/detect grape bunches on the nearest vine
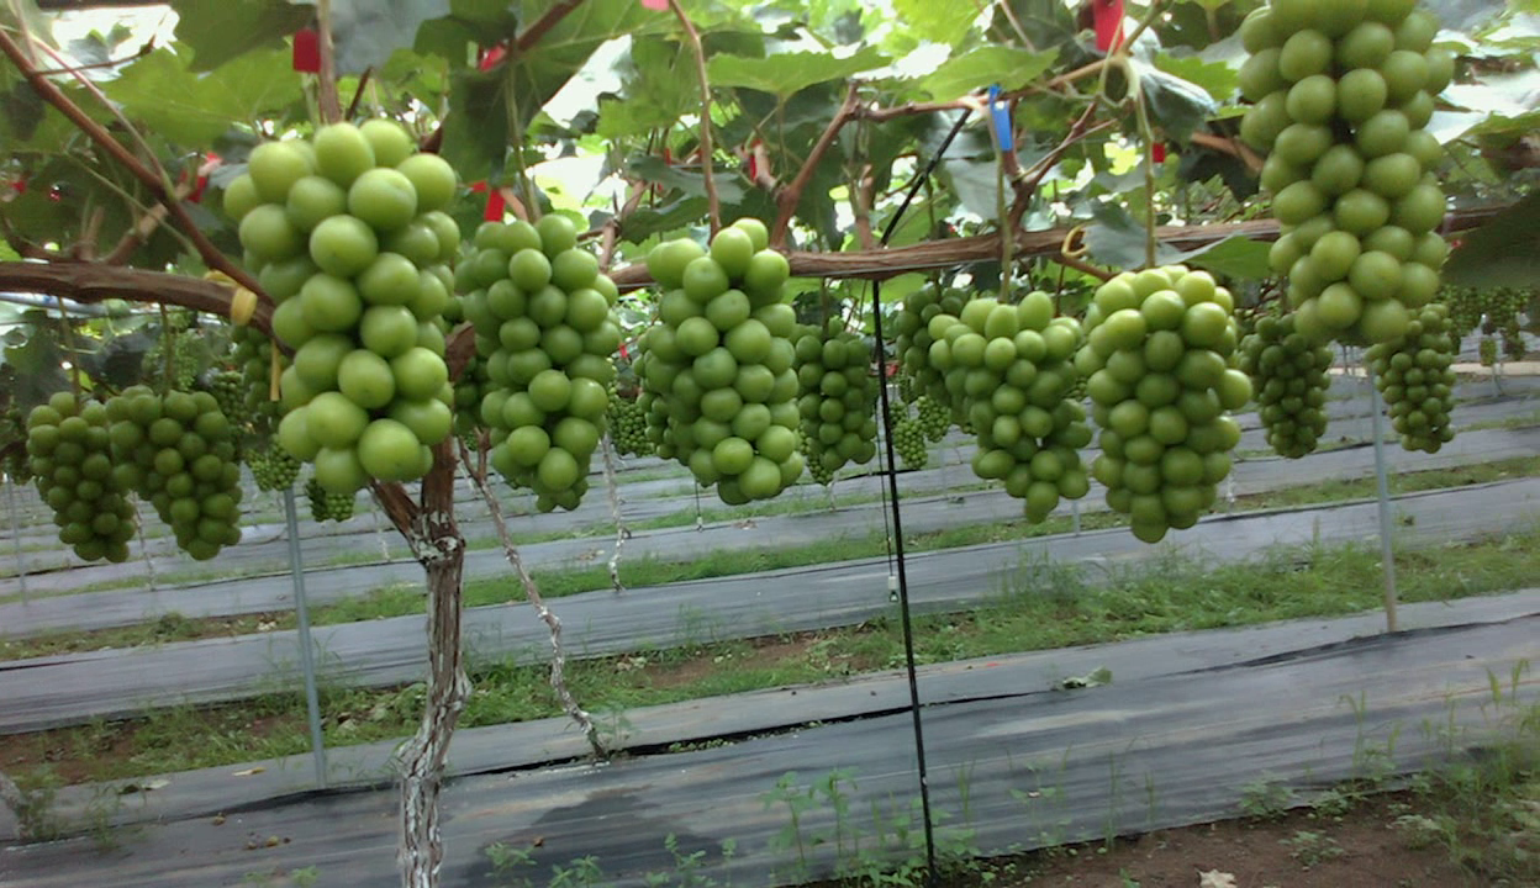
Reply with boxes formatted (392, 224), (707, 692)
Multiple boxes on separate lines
(645, 217), (808, 507)
(225, 117), (464, 498)
(929, 294), (1093, 520)
(453, 215), (619, 495)
(1236, 0), (1449, 349)
(1075, 265), (1251, 545)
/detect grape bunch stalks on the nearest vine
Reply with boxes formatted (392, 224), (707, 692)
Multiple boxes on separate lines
(506, 38), (538, 220)
(668, 1), (721, 231)
(1111, 57), (1155, 265)
(882, 100), (1009, 302)
(317, 6), (341, 121)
